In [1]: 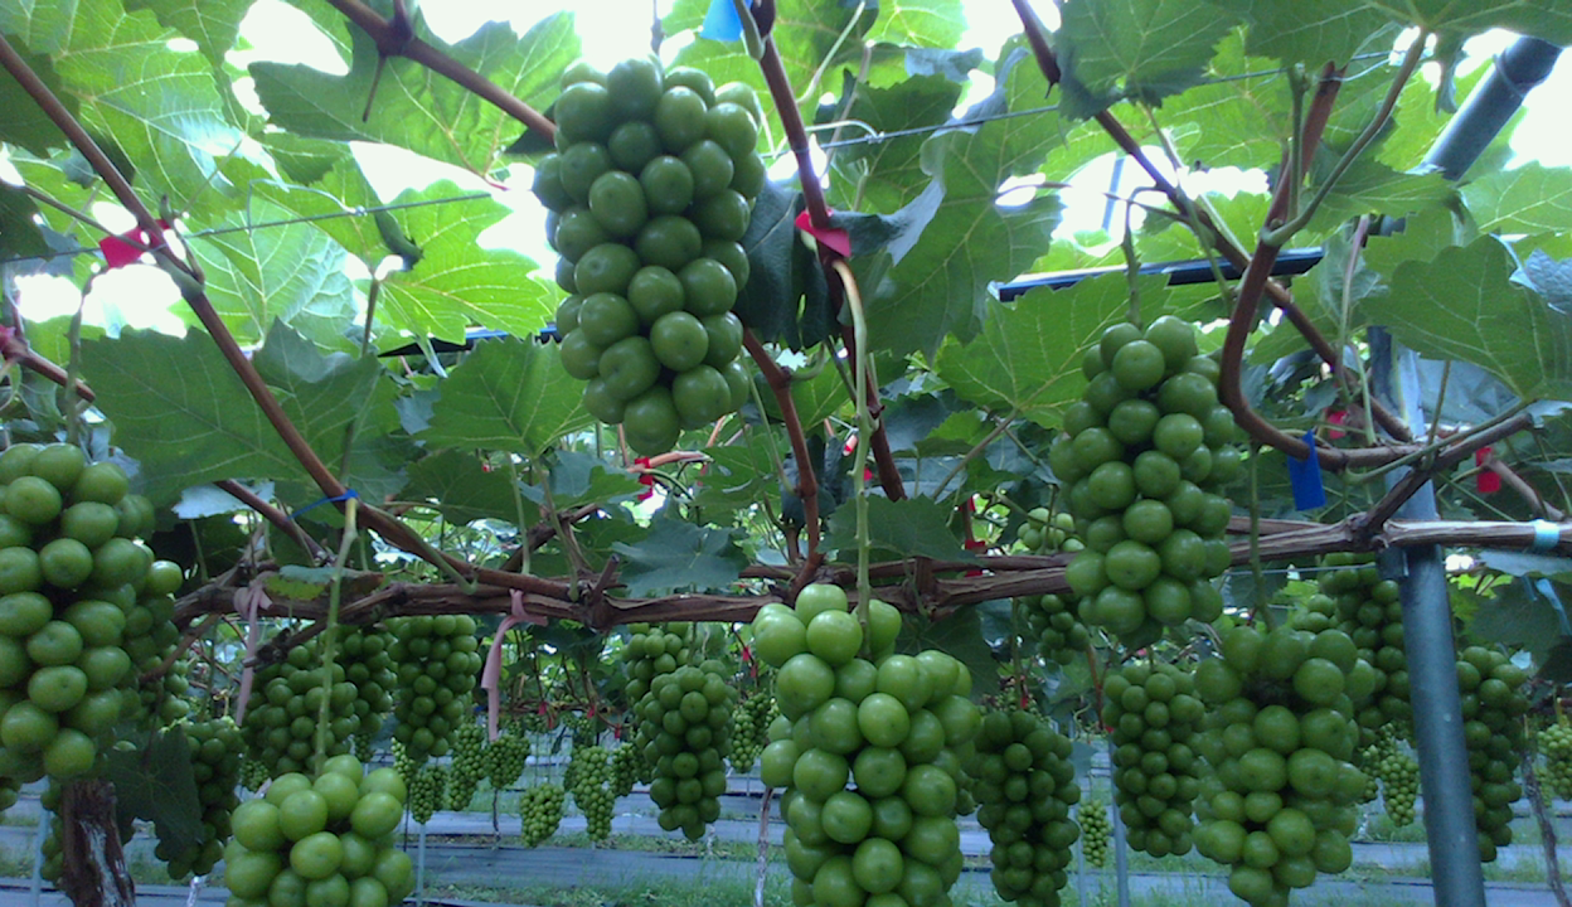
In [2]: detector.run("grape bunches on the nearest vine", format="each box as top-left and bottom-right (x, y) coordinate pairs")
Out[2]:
(0, 441), (156, 784)
(532, 49), (767, 457)
(749, 582), (981, 906)
(223, 755), (416, 906)
(1048, 314), (1241, 653)
(1192, 626), (1377, 906)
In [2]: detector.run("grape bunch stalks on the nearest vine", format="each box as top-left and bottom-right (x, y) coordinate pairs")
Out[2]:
(1120, 185), (1161, 330)
(1247, 436), (1276, 632)
(60, 263), (110, 446)
(831, 257), (873, 663)
(651, 0), (663, 55)
(315, 498), (358, 781)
